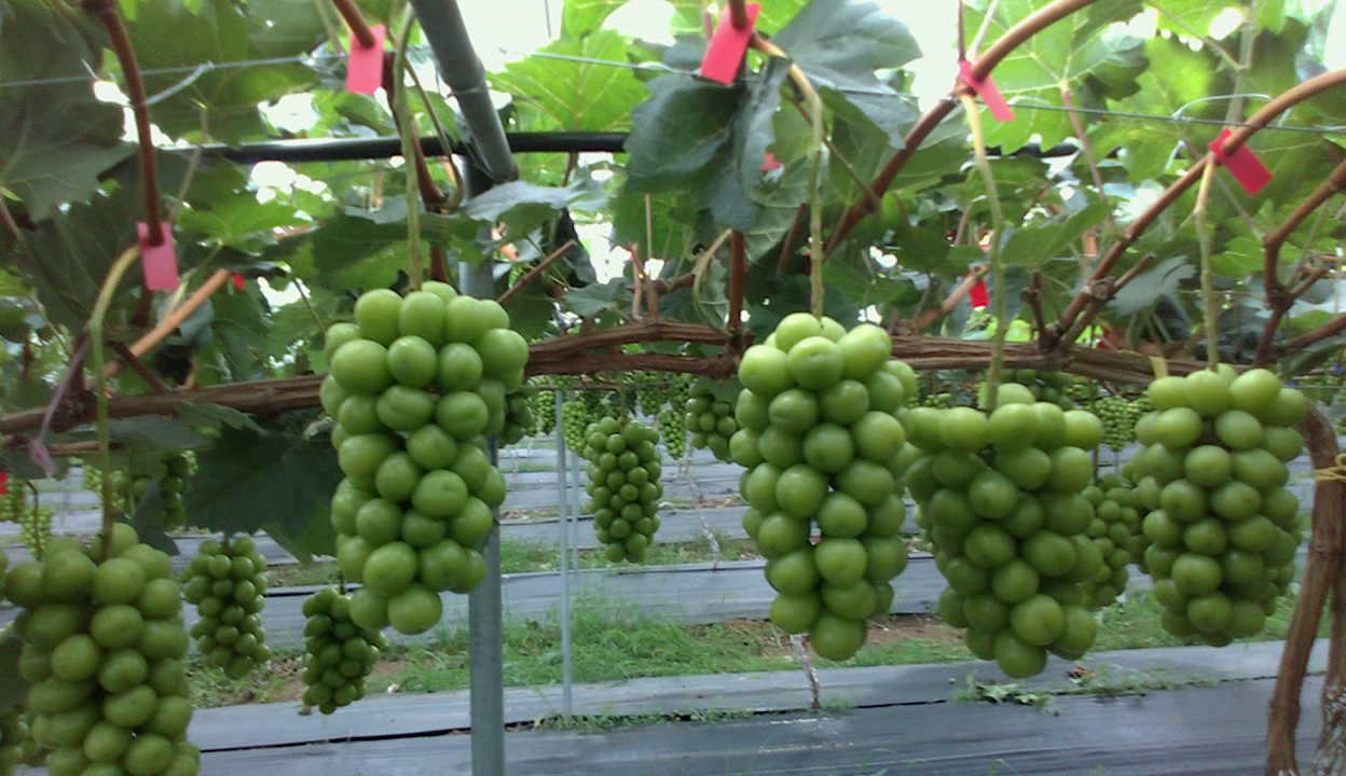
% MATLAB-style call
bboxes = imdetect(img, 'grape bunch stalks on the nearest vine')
[393,5,421,290]
[1195,152,1217,371]
[752,30,825,317]
[90,240,139,559]
[960,94,1005,411]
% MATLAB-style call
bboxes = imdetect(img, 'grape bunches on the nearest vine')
[907,383,1102,679]
[1132,365,1306,648]
[730,311,922,663]
[2,523,201,775]
[319,283,527,633]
